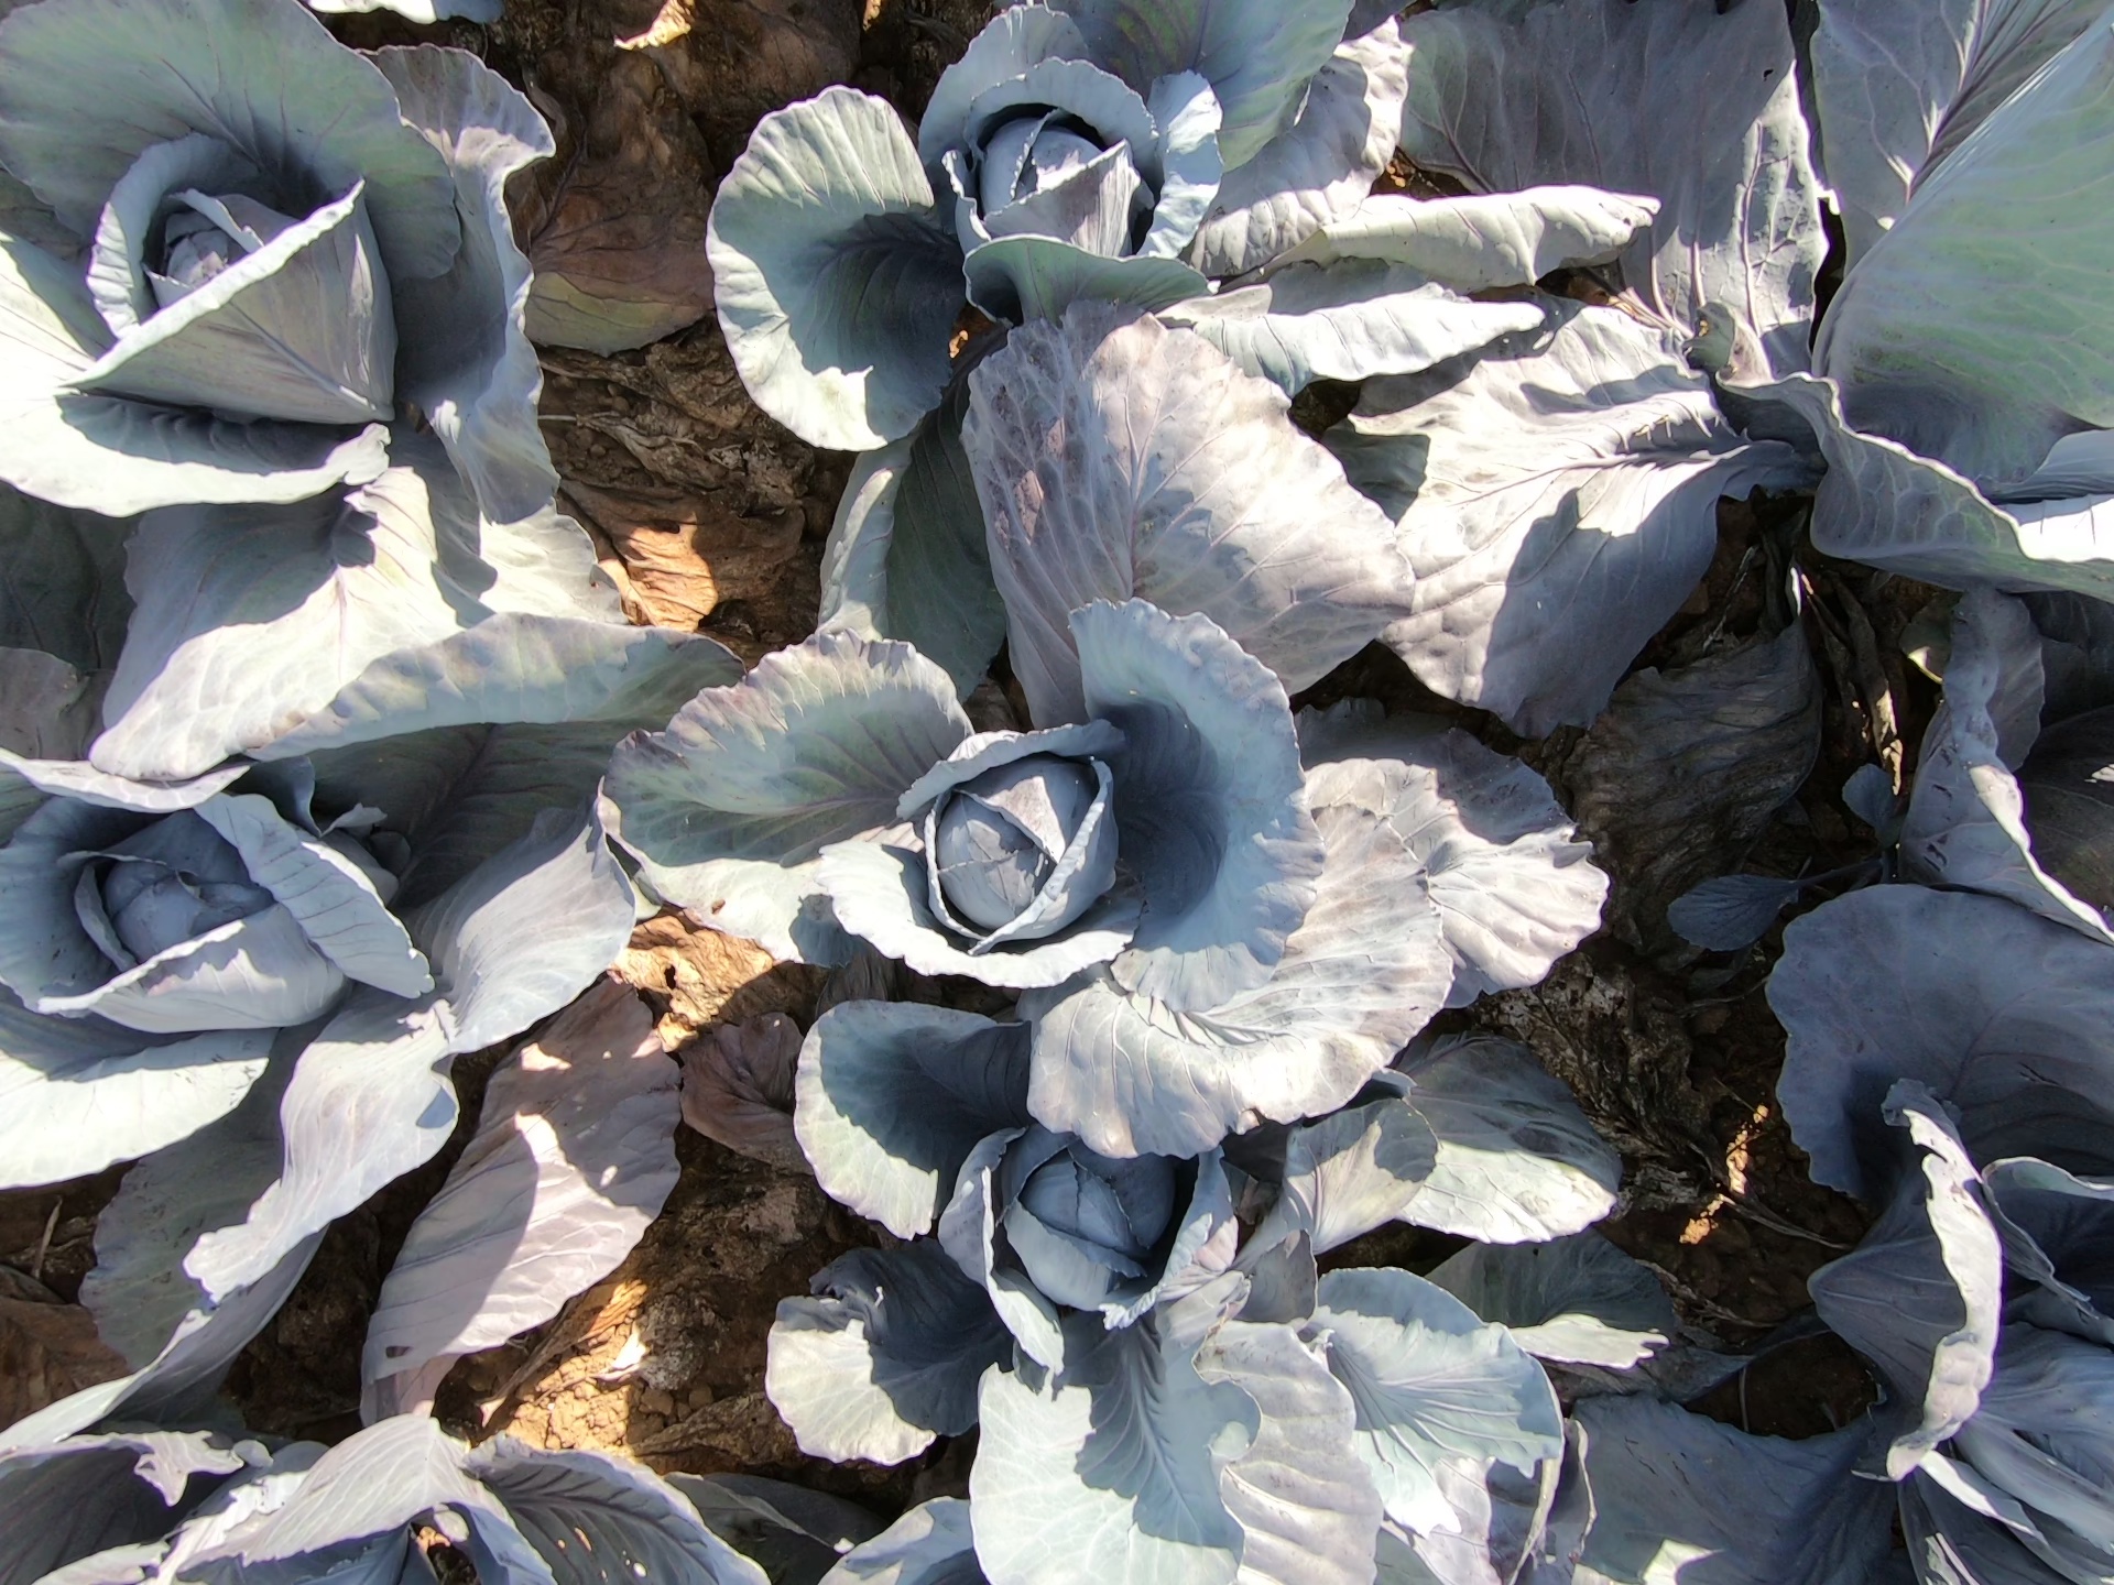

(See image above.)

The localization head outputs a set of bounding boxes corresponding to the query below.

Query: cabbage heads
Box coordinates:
[980,135,1124,258]
[1958,1330,2110,1546]
[156,1461,408,1582]
[925,753,1103,937]
[98,819,338,999]
[154,204,320,358]
[1005,1106,1169,1267]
